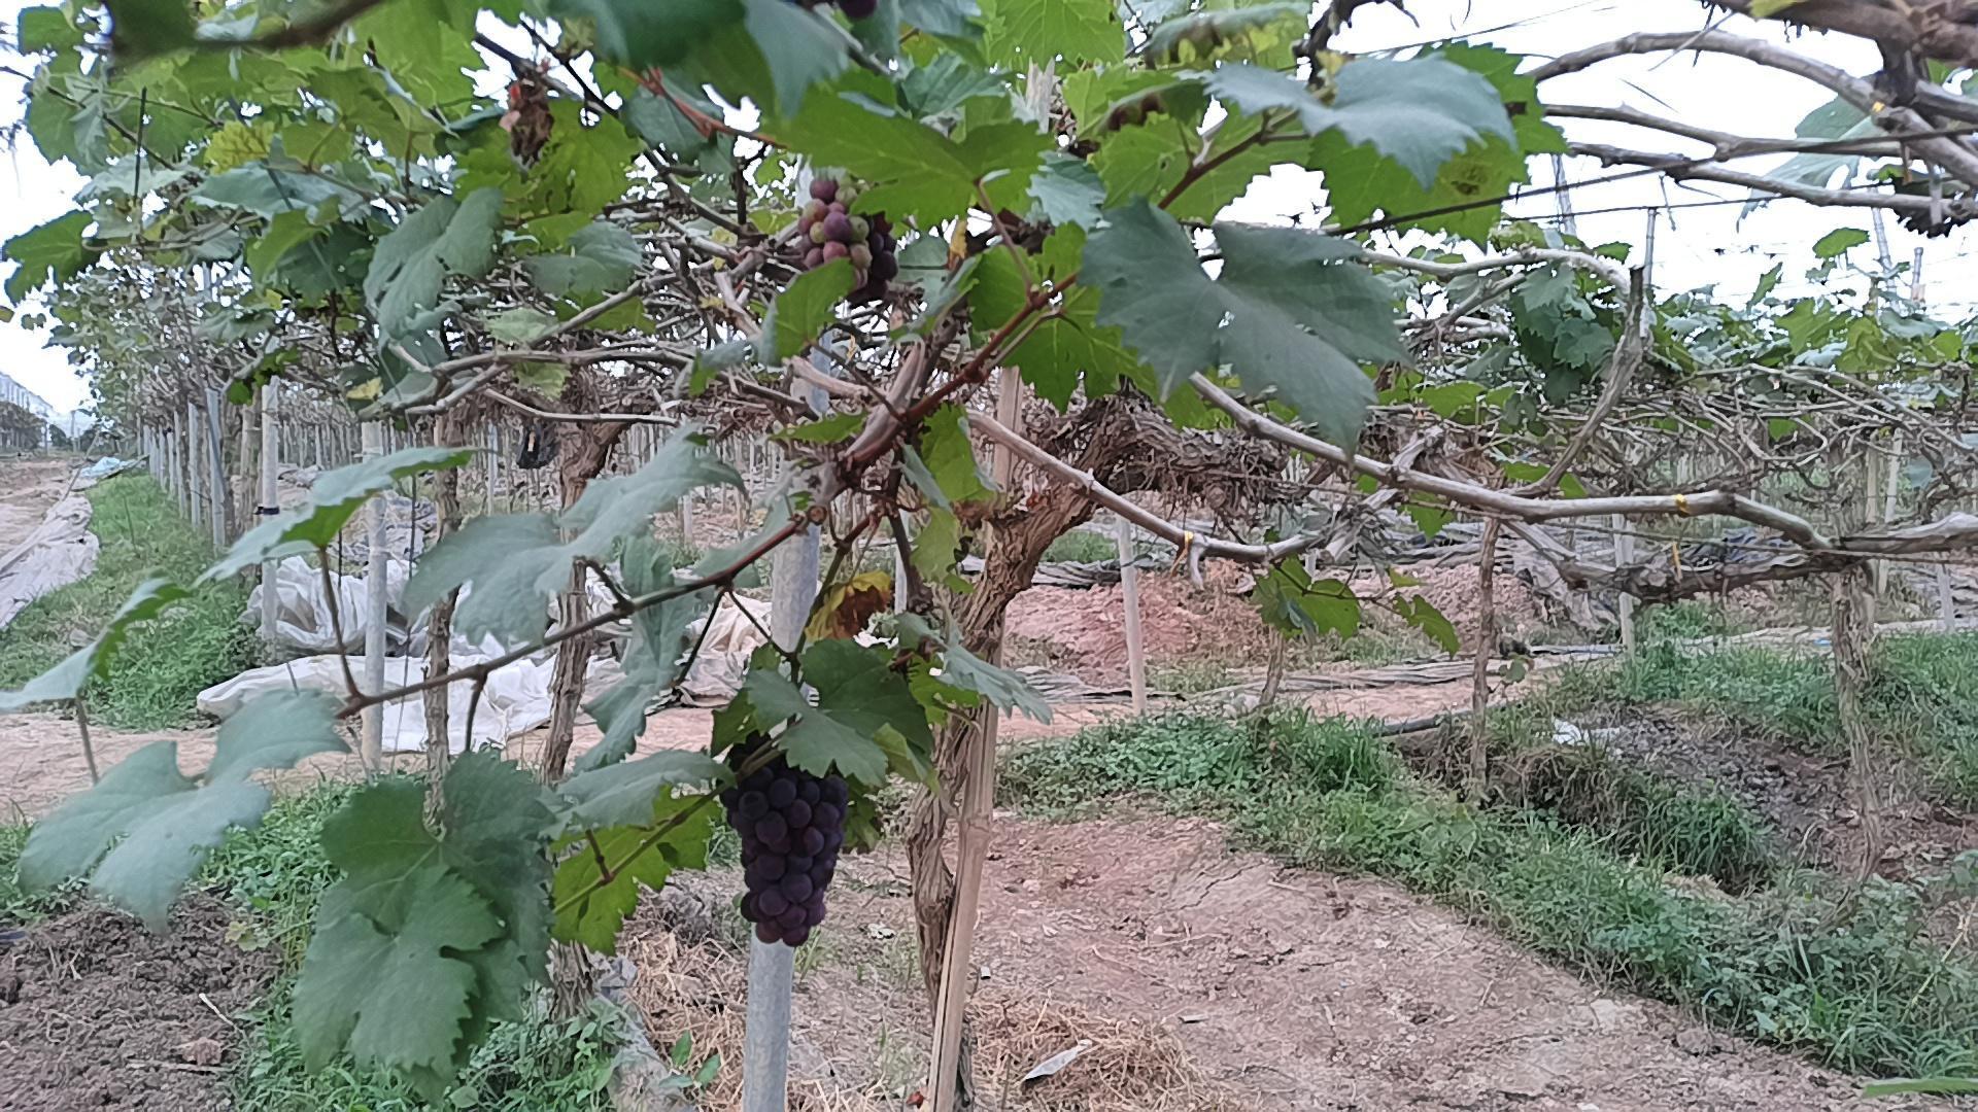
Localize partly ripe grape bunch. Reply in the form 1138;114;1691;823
796;168;897;306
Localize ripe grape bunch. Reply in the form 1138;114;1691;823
720;730;849;946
